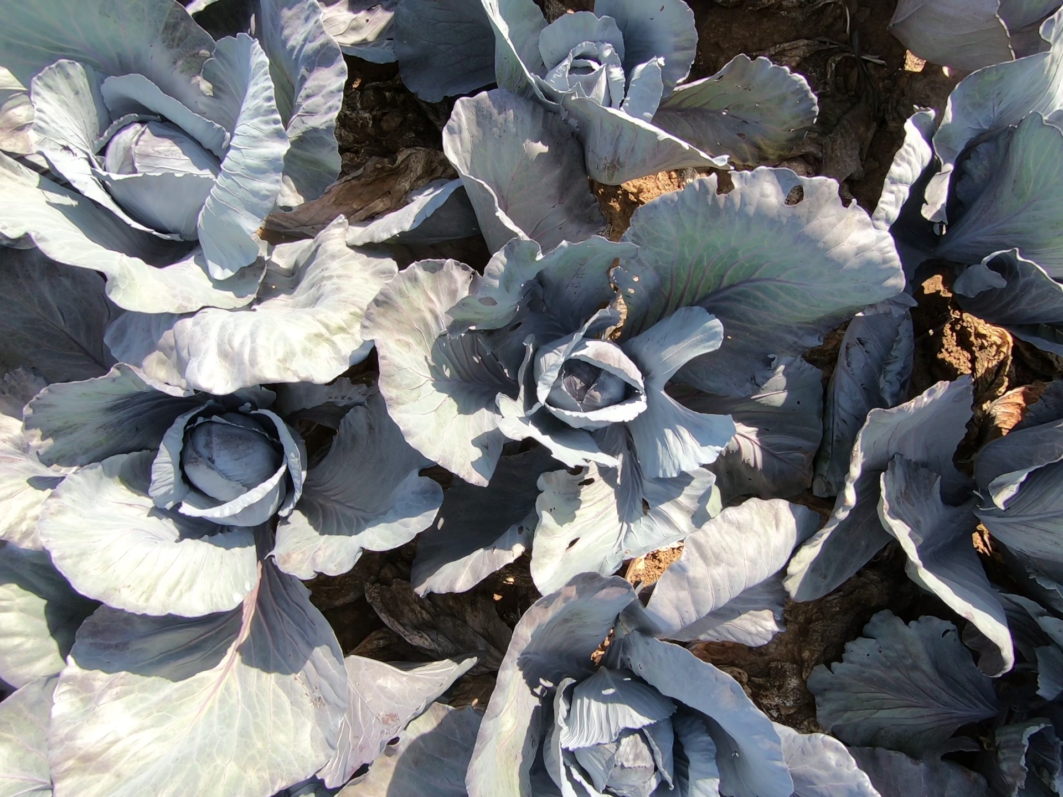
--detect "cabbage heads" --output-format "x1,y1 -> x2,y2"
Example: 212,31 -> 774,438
185,414 -> 280,500
560,58 -> 616,118
992,457 -> 1062,560
573,679 -> 674,796
538,338 -> 633,419
105,114 -> 227,230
